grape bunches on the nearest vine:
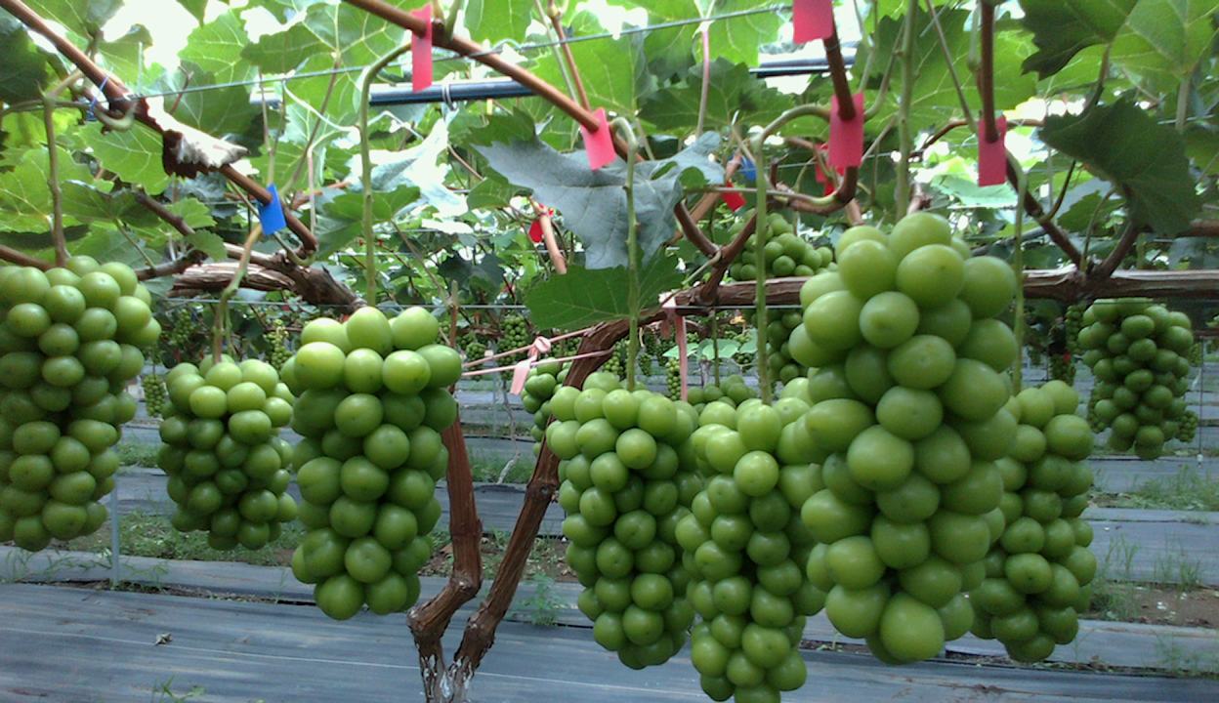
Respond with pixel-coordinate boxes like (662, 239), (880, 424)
(547, 371), (706, 670)
(1, 255), (161, 553)
(676, 377), (827, 702)
(967, 380), (1097, 662)
(156, 352), (298, 552)
(787, 213), (1020, 666)
(279, 305), (463, 620)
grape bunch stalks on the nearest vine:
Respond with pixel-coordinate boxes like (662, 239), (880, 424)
(43, 72), (87, 268)
(212, 225), (262, 365)
(755, 105), (831, 407)
(895, 0), (918, 225)
(1005, 149), (1029, 398)
(609, 117), (638, 392)
(360, 42), (411, 307)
